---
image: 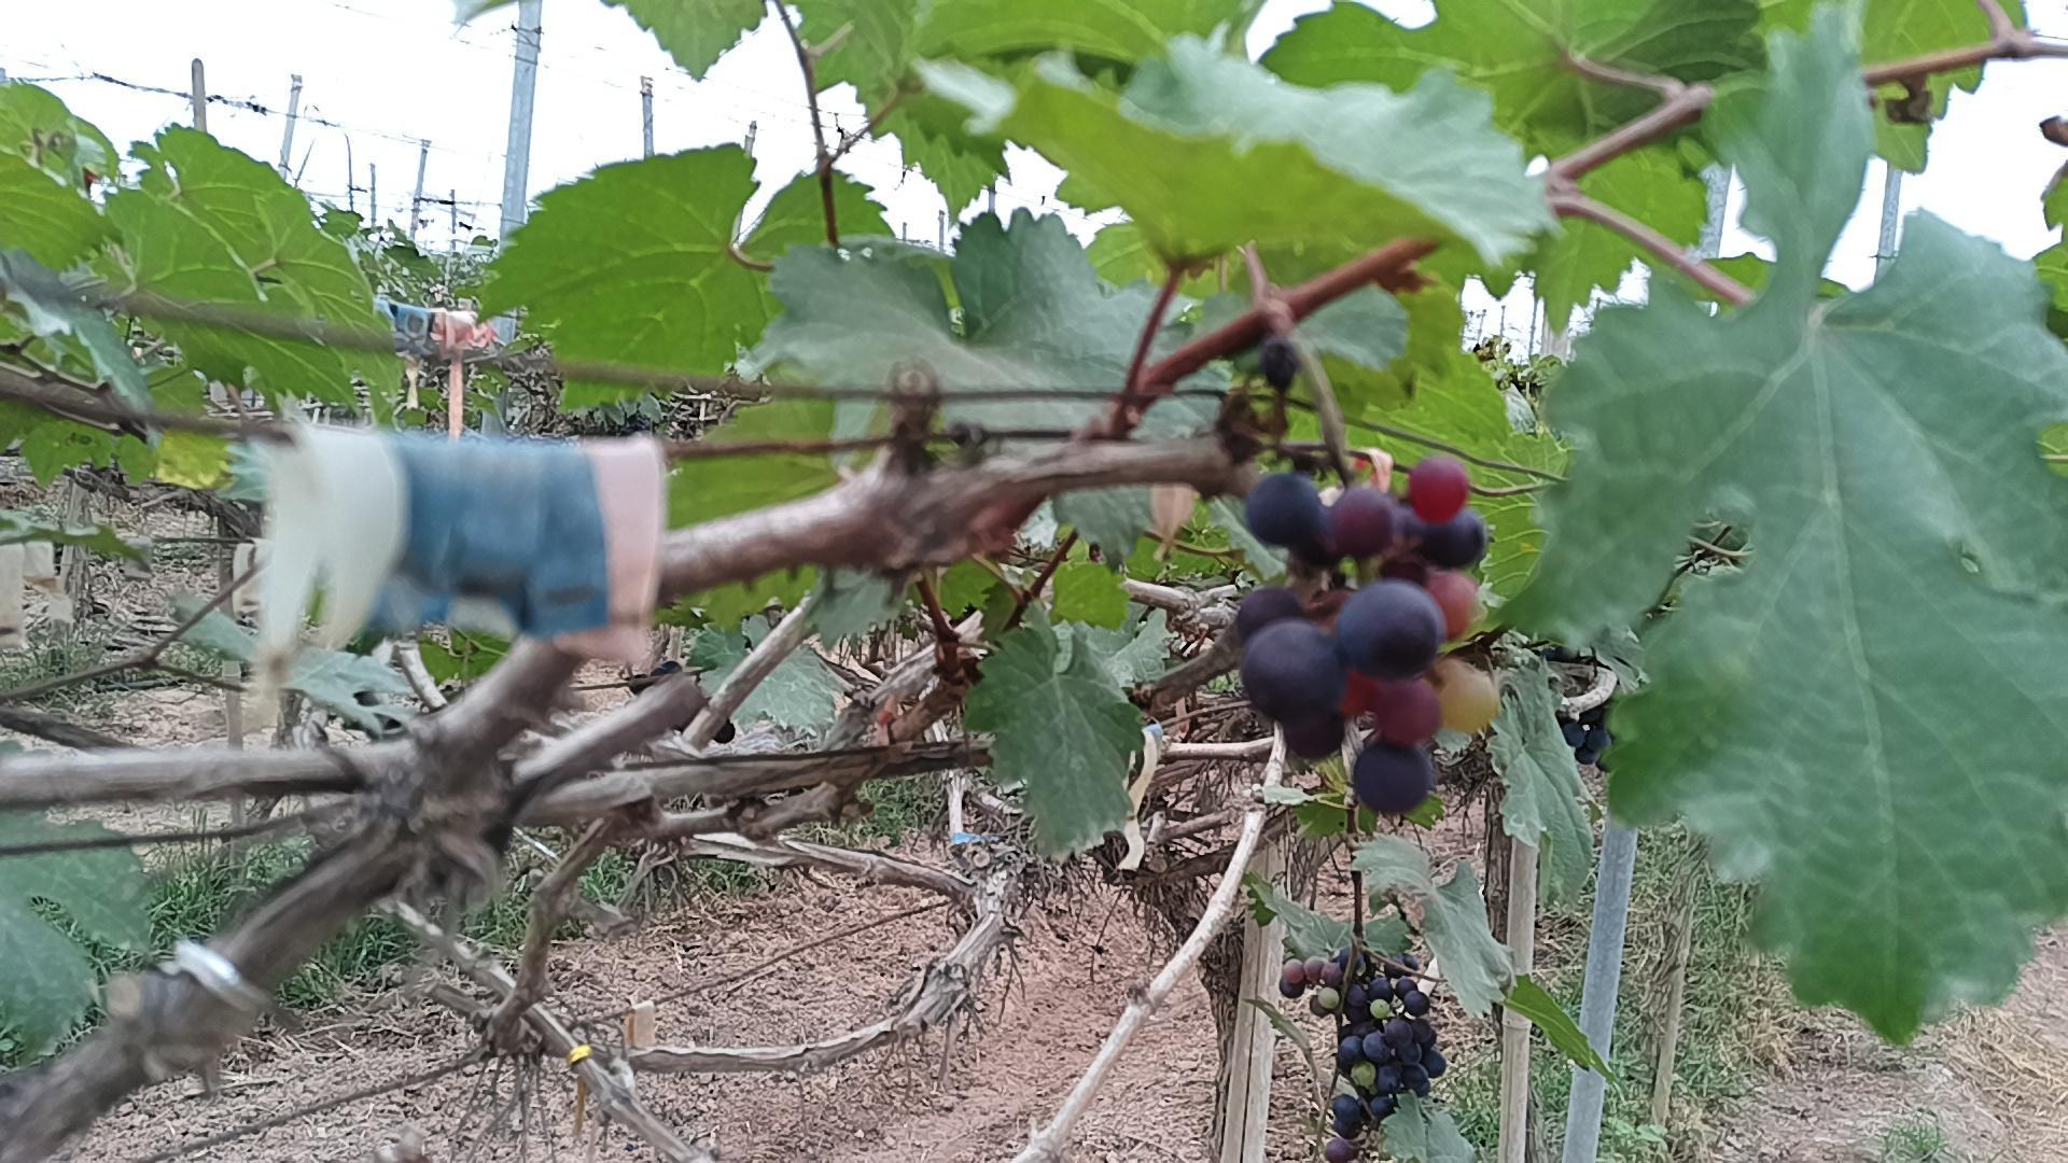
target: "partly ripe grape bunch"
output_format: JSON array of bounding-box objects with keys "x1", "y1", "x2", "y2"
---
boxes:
[{"x1": 1220, "y1": 451, "x2": 1497, "y2": 815}]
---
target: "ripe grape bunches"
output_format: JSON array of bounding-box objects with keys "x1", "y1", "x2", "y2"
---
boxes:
[
  {"x1": 1281, "y1": 943, "x2": 1447, "y2": 1162},
  {"x1": 1560, "y1": 707, "x2": 1610, "y2": 763}
]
